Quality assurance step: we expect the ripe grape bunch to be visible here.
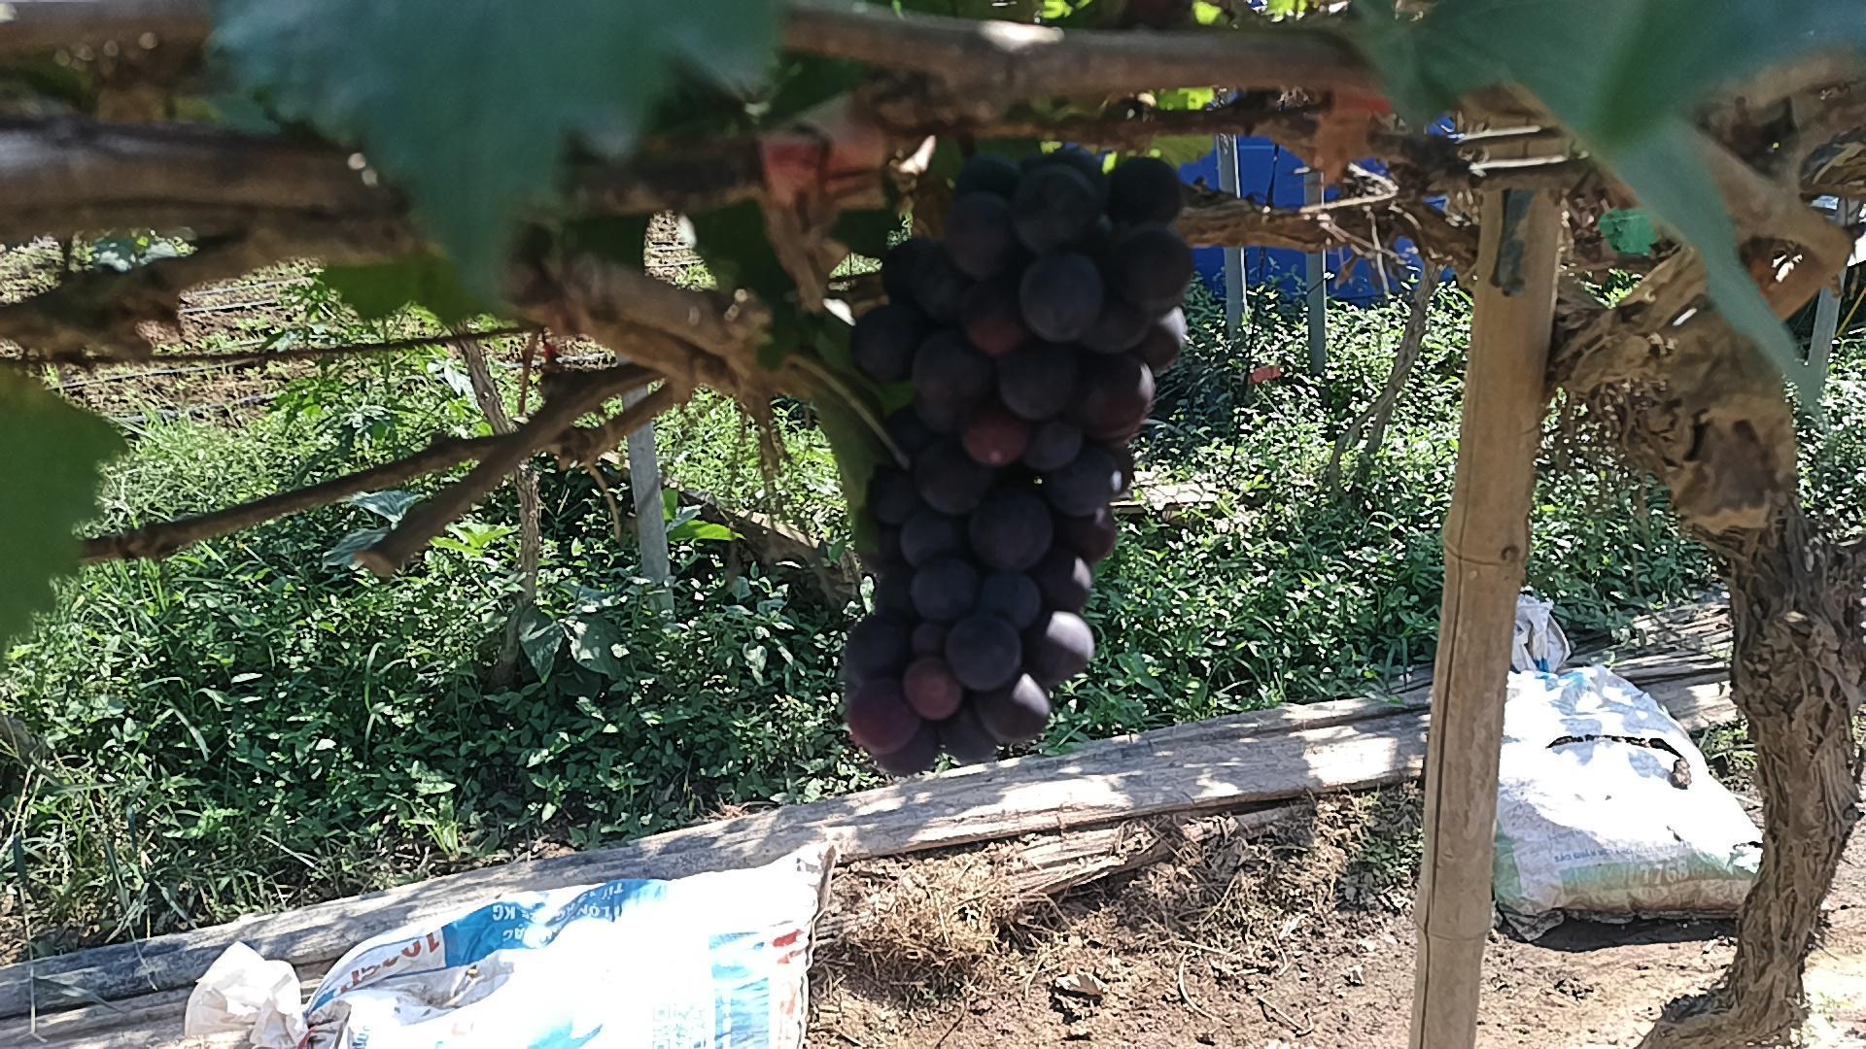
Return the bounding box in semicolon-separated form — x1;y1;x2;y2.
845;151;1196;775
